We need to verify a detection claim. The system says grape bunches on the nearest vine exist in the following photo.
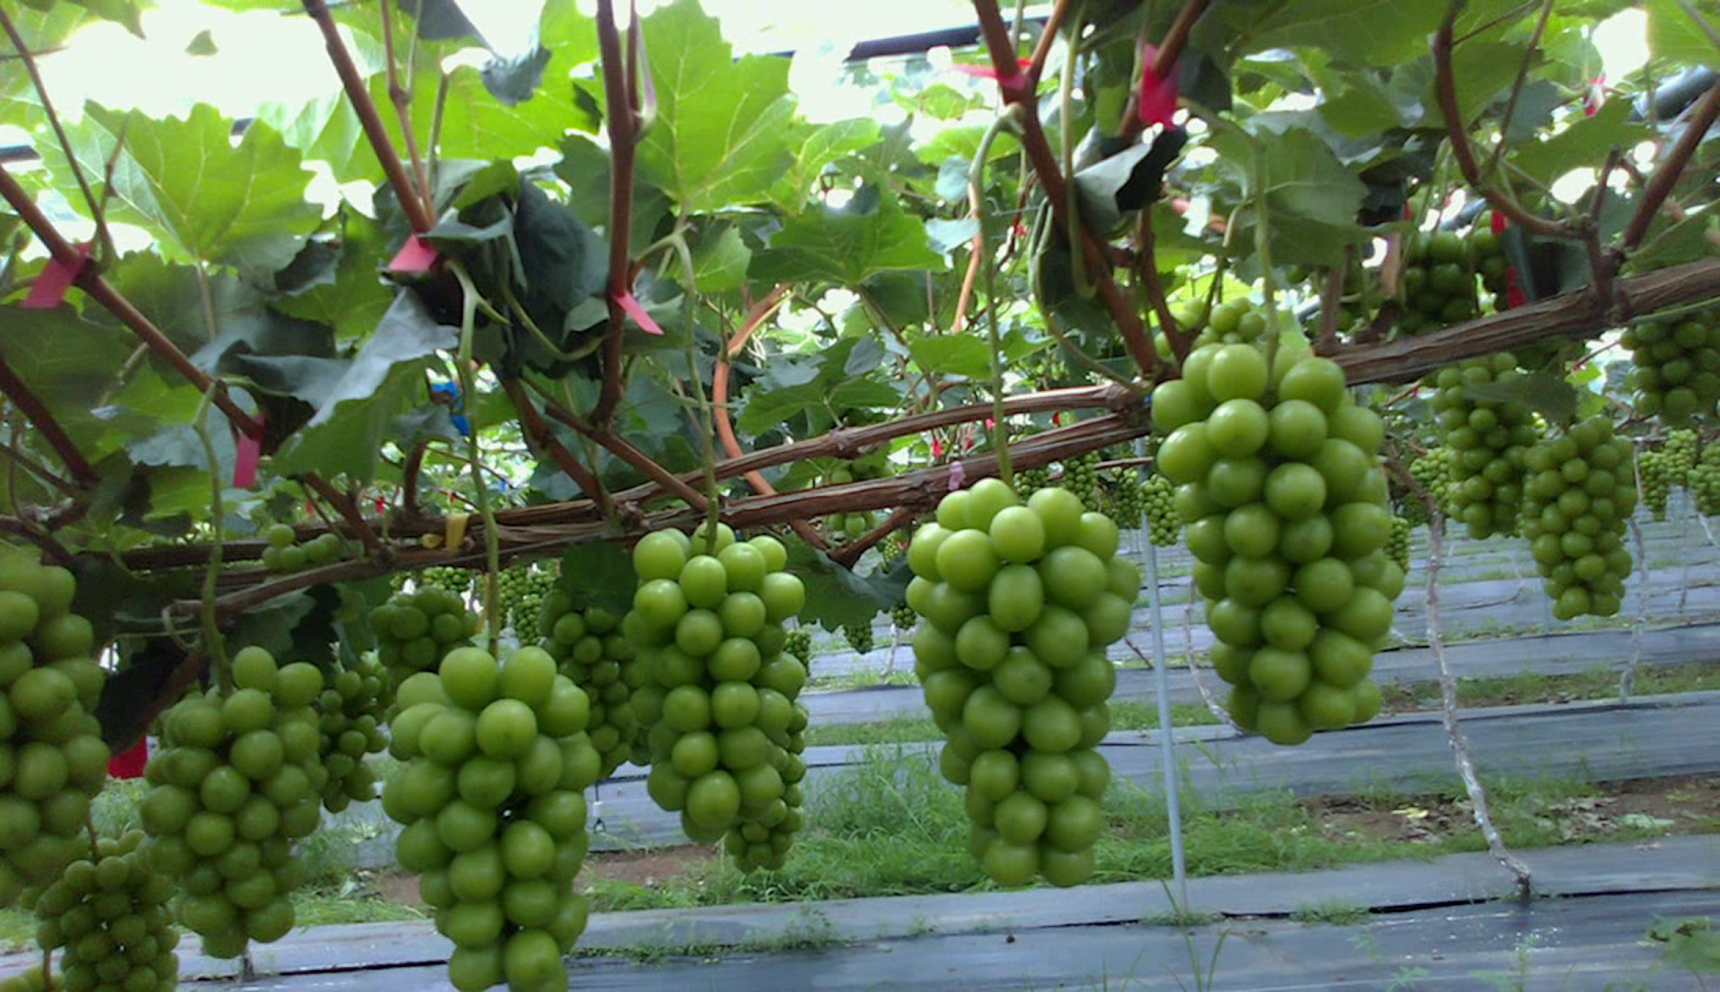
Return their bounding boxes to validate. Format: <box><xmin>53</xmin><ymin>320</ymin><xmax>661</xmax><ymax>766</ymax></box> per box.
<box><xmin>1151</xmin><ymin>331</ymin><xmax>1404</xmax><ymax>750</ymax></box>
<box><xmin>36</xmin><ymin>829</ymin><xmax>183</xmax><ymax>991</ymax></box>
<box><xmin>623</xmin><ymin>525</ymin><xmax>805</xmax><ymax>843</ymax></box>
<box><xmin>134</xmin><ymin>645</ymin><xmax>328</xmax><ymax>960</ymax></box>
<box><xmin>0</xmin><ymin>551</ymin><xmax>107</xmax><ymax>908</ymax></box>
<box><xmin>905</xmin><ymin>478</ymin><xmax>1140</xmax><ymax>886</ymax></box>
<box><xmin>382</xmin><ymin>645</ymin><xmax>600</xmax><ymax>991</ymax></box>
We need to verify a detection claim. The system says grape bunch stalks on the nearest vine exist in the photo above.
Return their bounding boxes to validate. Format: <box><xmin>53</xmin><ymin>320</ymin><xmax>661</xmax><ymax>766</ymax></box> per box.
<box><xmin>190</xmin><ymin>390</ymin><xmax>232</xmax><ymax>697</ymax></box>
<box><xmin>88</xmin><ymin>828</ymin><xmax>99</xmax><ymax>854</ymax></box>
<box><xmin>452</xmin><ymin>263</ymin><xmax>504</xmax><ymax>656</ymax></box>
<box><xmin>646</xmin><ymin>236</ymin><xmax>719</xmax><ymax>554</ymax></box>
<box><xmin>967</xmin><ymin>113</ymin><xmax>1023</xmax><ymax>485</ymax></box>
<box><xmin>1188</xmin><ymin>102</ymin><xmax>1280</xmax><ymax>365</ymax></box>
